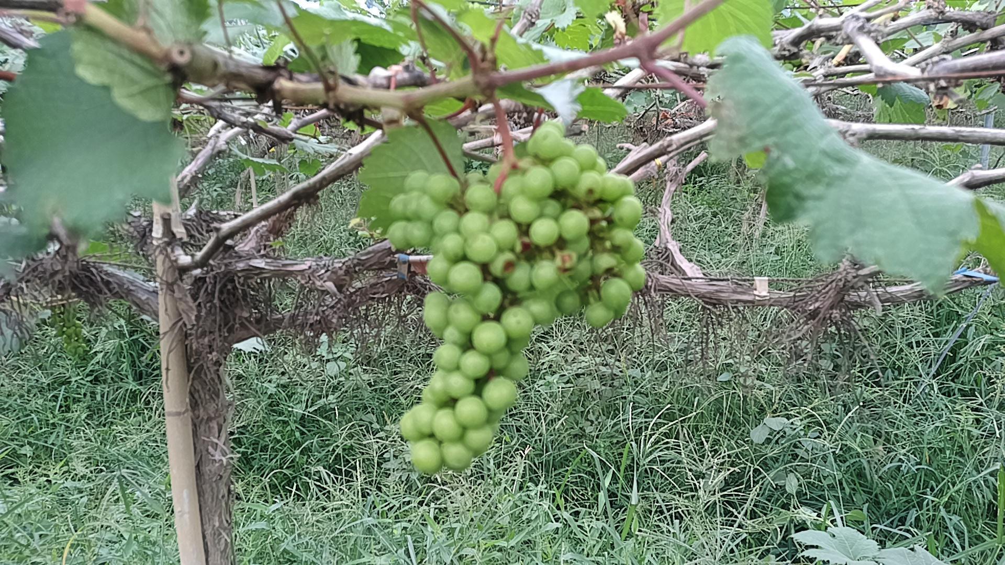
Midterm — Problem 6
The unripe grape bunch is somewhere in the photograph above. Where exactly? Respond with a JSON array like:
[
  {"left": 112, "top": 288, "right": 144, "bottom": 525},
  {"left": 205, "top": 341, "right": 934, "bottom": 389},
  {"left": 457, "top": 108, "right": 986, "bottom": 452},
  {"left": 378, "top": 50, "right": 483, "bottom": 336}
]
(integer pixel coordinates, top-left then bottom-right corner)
[{"left": 386, "top": 121, "right": 645, "bottom": 473}]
